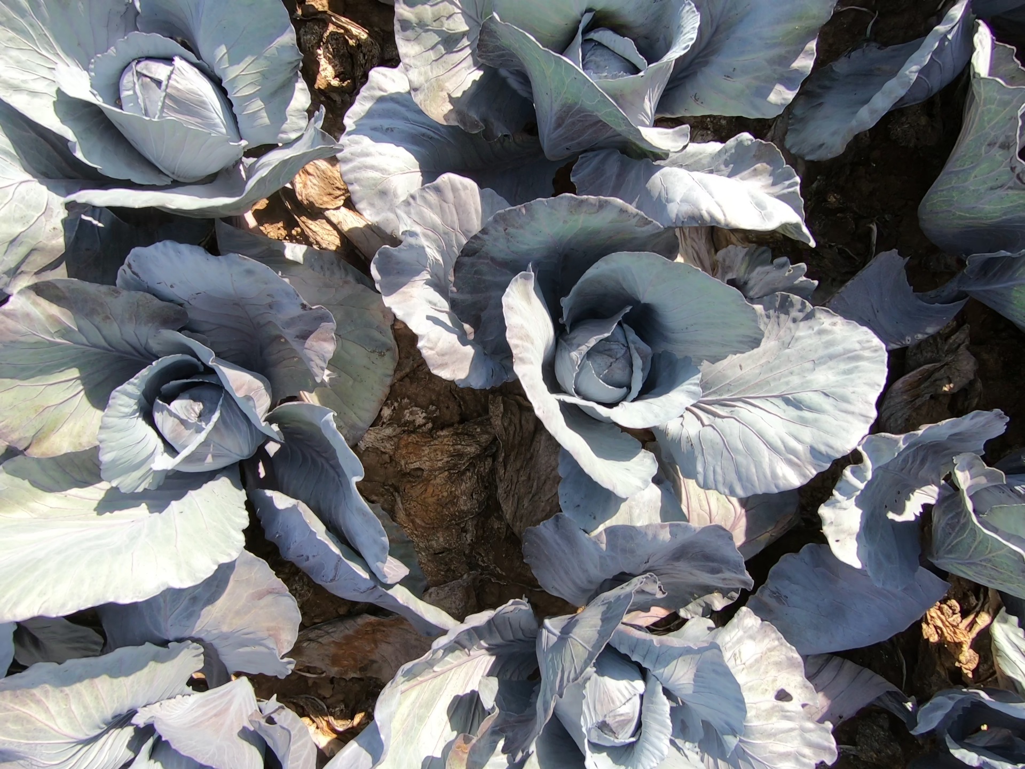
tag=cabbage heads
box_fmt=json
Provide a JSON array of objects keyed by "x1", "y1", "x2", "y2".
[
  {"x1": 164, "y1": 383, "x2": 257, "y2": 460},
  {"x1": 562, "y1": 321, "x2": 648, "y2": 404},
  {"x1": 561, "y1": 30, "x2": 643, "y2": 123},
  {"x1": 548, "y1": 645, "x2": 646, "y2": 744},
  {"x1": 119, "y1": 52, "x2": 234, "y2": 172},
  {"x1": 961, "y1": 478, "x2": 1021, "y2": 560},
  {"x1": 133, "y1": 697, "x2": 261, "y2": 766}
]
